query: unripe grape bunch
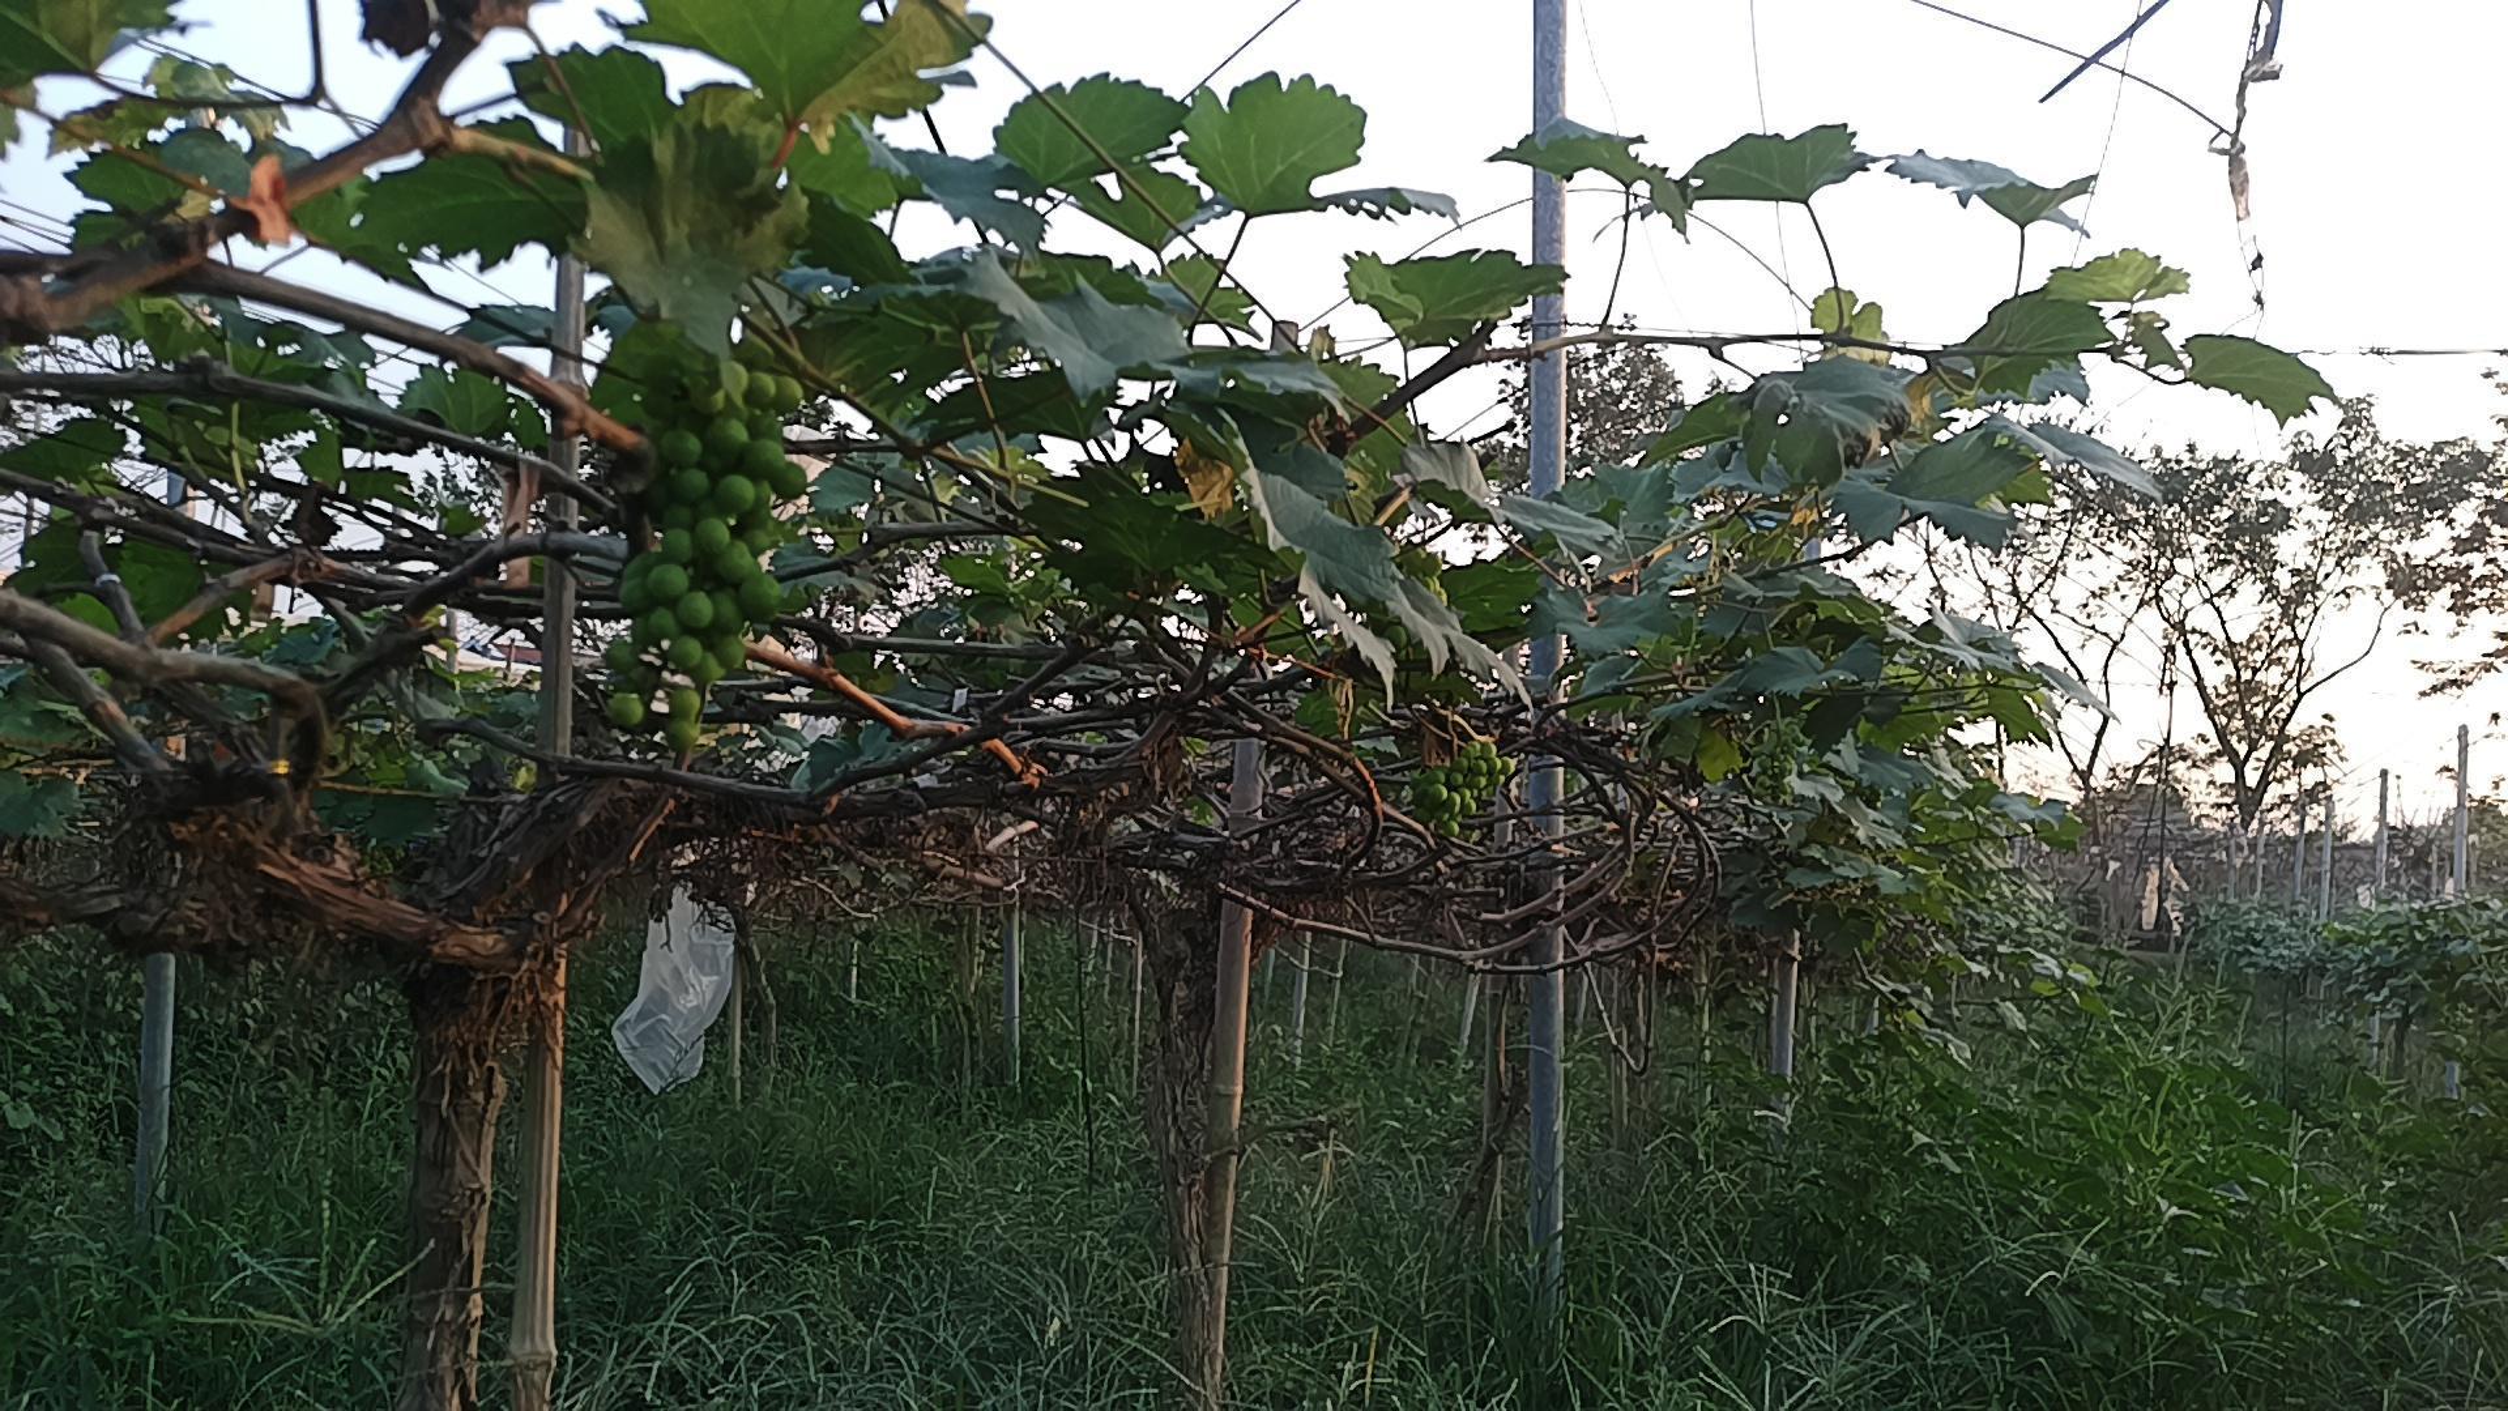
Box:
[593,323,803,750]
